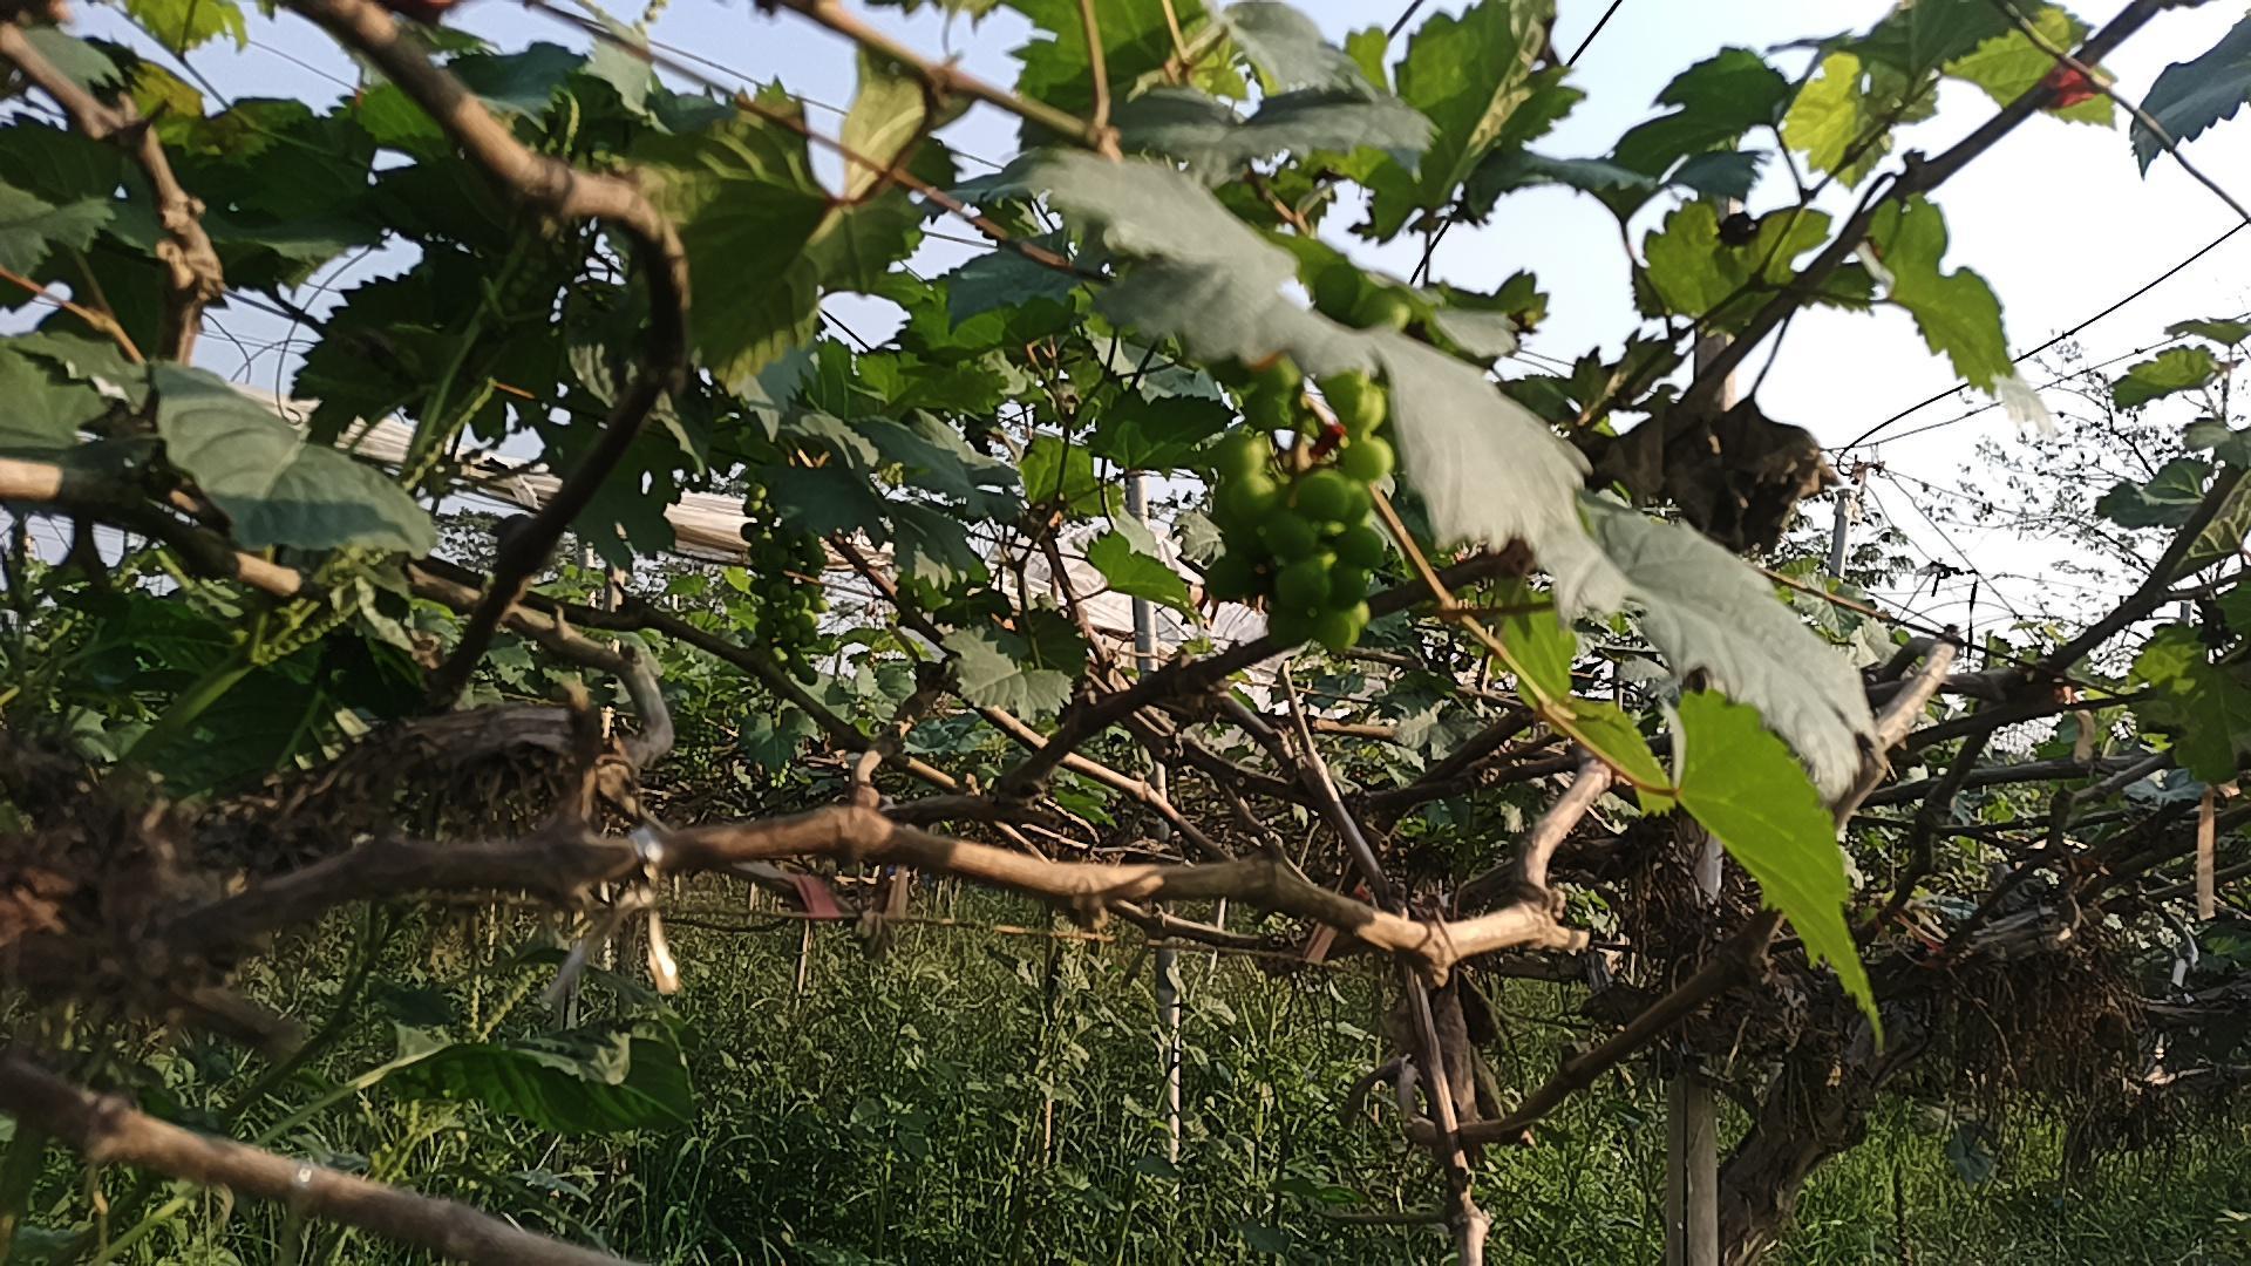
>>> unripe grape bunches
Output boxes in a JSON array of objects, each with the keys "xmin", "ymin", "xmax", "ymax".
[
  {"xmin": 730, "ymin": 481, "xmax": 834, "ymax": 687},
  {"xmin": 1201, "ymin": 266, "xmax": 1412, "ymax": 655}
]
